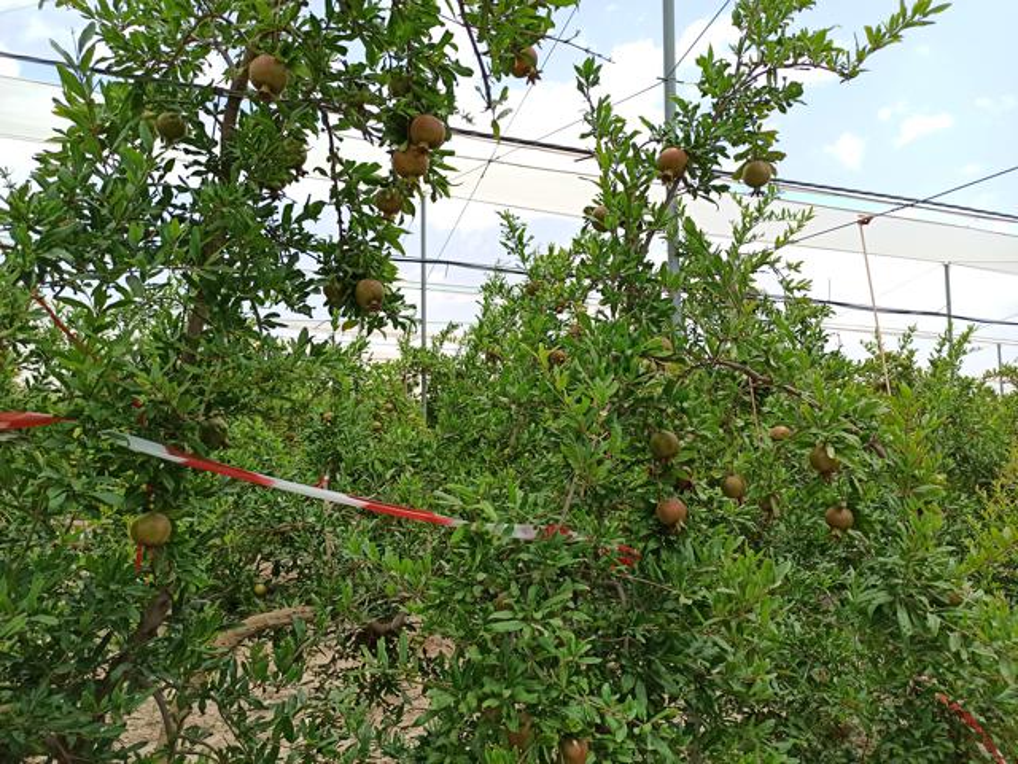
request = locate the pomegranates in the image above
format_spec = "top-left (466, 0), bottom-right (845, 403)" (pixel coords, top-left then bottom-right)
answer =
top-left (549, 350), bottom-right (566, 366)
top-left (129, 511), bottom-right (173, 548)
top-left (511, 48), bottom-right (544, 86)
top-left (353, 277), bottom-right (387, 310)
top-left (590, 205), bottom-right (608, 232)
top-left (156, 111), bottom-right (188, 151)
top-left (768, 425), bottom-right (792, 441)
top-left (824, 508), bottom-right (856, 541)
top-left (391, 150), bottom-right (428, 188)
top-left (558, 737), bottom-right (590, 764)
top-left (810, 446), bottom-right (841, 484)
top-left (649, 430), bottom-right (679, 460)
top-left (372, 189), bottom-right (399, 220)
top-left (657, 497), bottom-right (687, 535)
top-left (741, 159), bottom-right (770, 199)
top-left (248, 56), bottom-right (286, 103)
top-left (507, 724), bottom-right (530, 750)
top-left (722, 474), bottom-right (748, 505)
top-left (409, 115), bottom-right (445, 156)
top-left (659, 146), bottom-right (687, 188)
